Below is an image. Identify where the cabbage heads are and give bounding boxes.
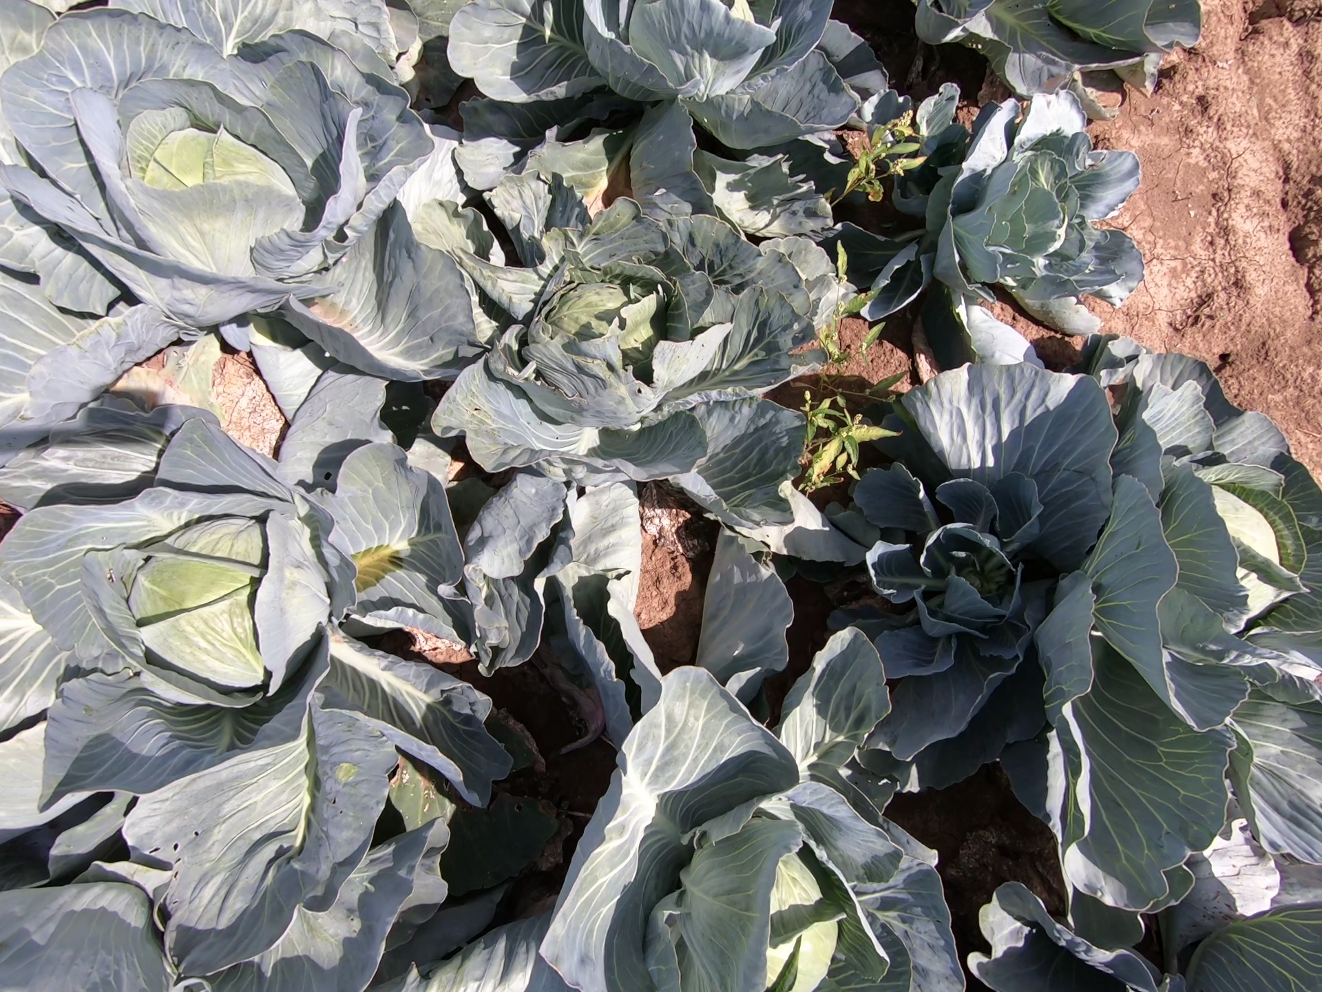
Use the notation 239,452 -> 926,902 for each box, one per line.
628,0 -> 759,104
1149,477 -> 1288,625
683,814 -> 841,991
547,282 -> 669,378
105,130 -> 302,293
124,518 -> 327,696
